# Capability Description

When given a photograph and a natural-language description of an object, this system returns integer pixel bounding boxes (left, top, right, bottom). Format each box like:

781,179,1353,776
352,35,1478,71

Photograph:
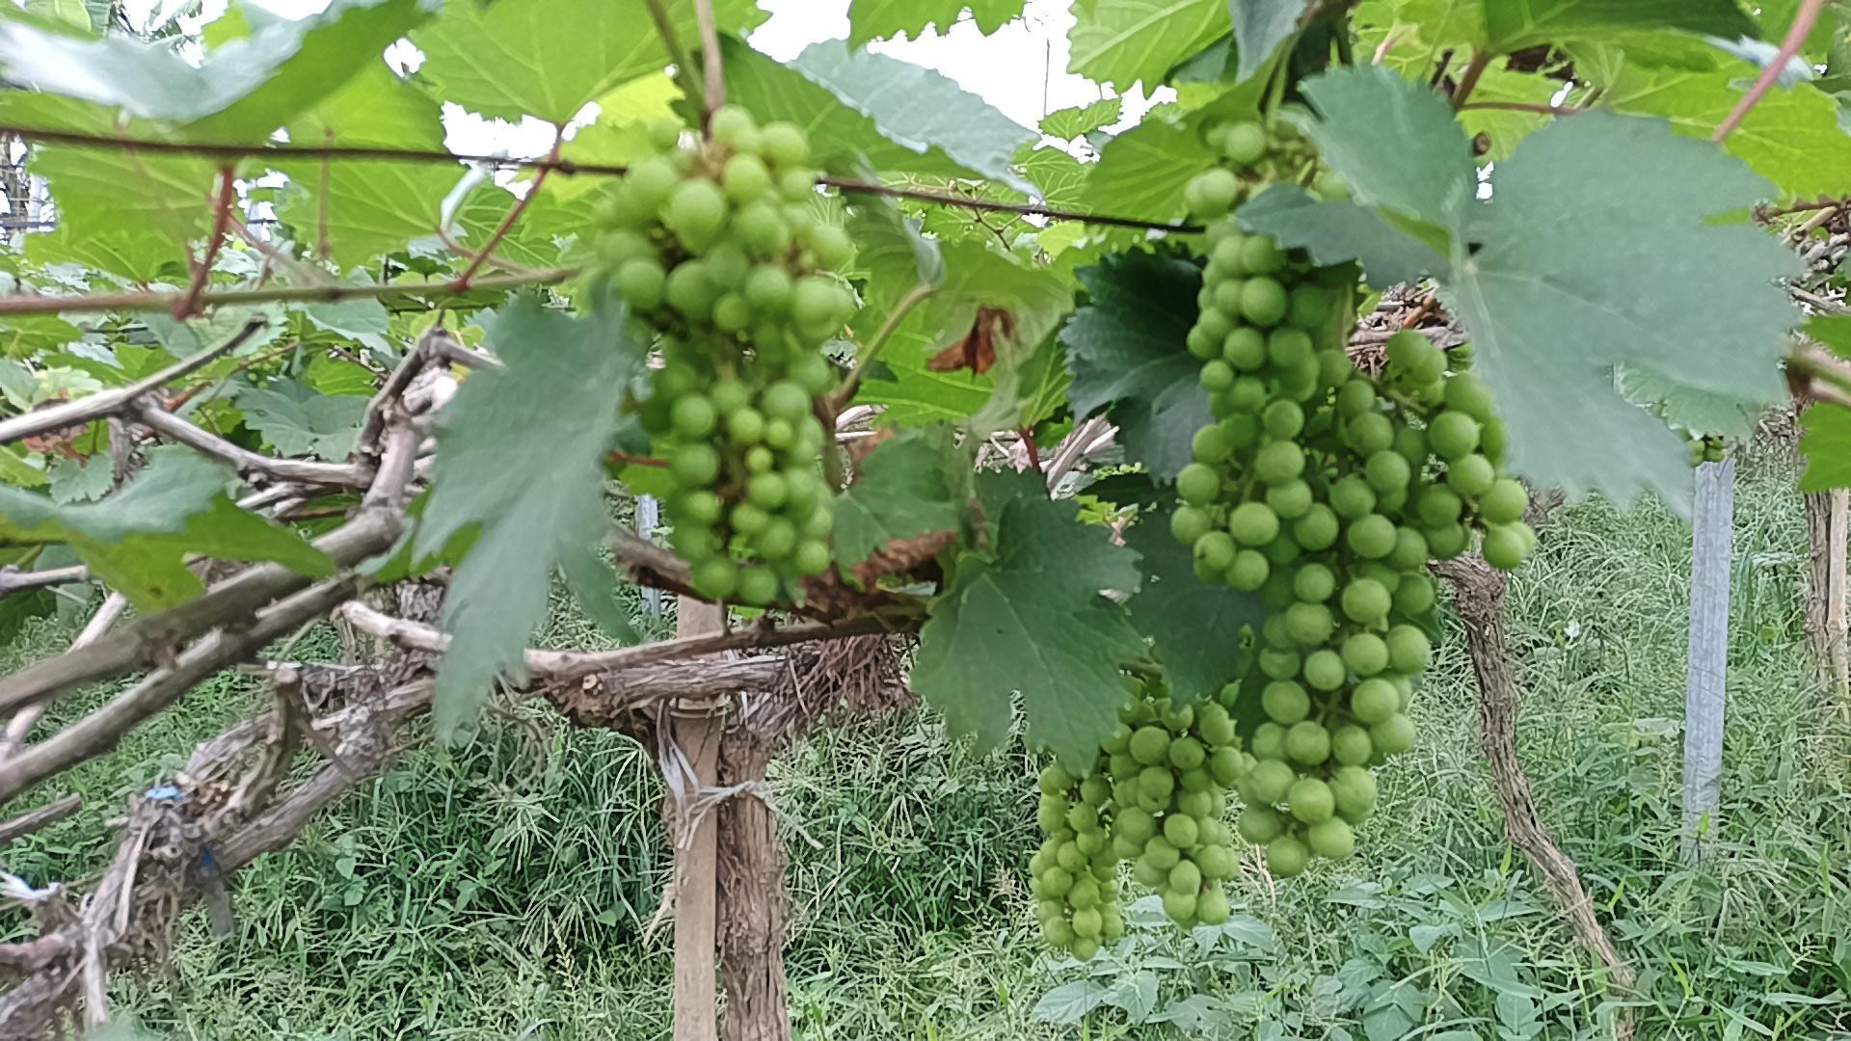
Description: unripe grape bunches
1170,121,1348,591
1030,764,1124,959
236,342,294,383
1380,330,1534,570
595,104,856,607
1237,351,1435,876
1676,427,1727,466
1104,683,1247,927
